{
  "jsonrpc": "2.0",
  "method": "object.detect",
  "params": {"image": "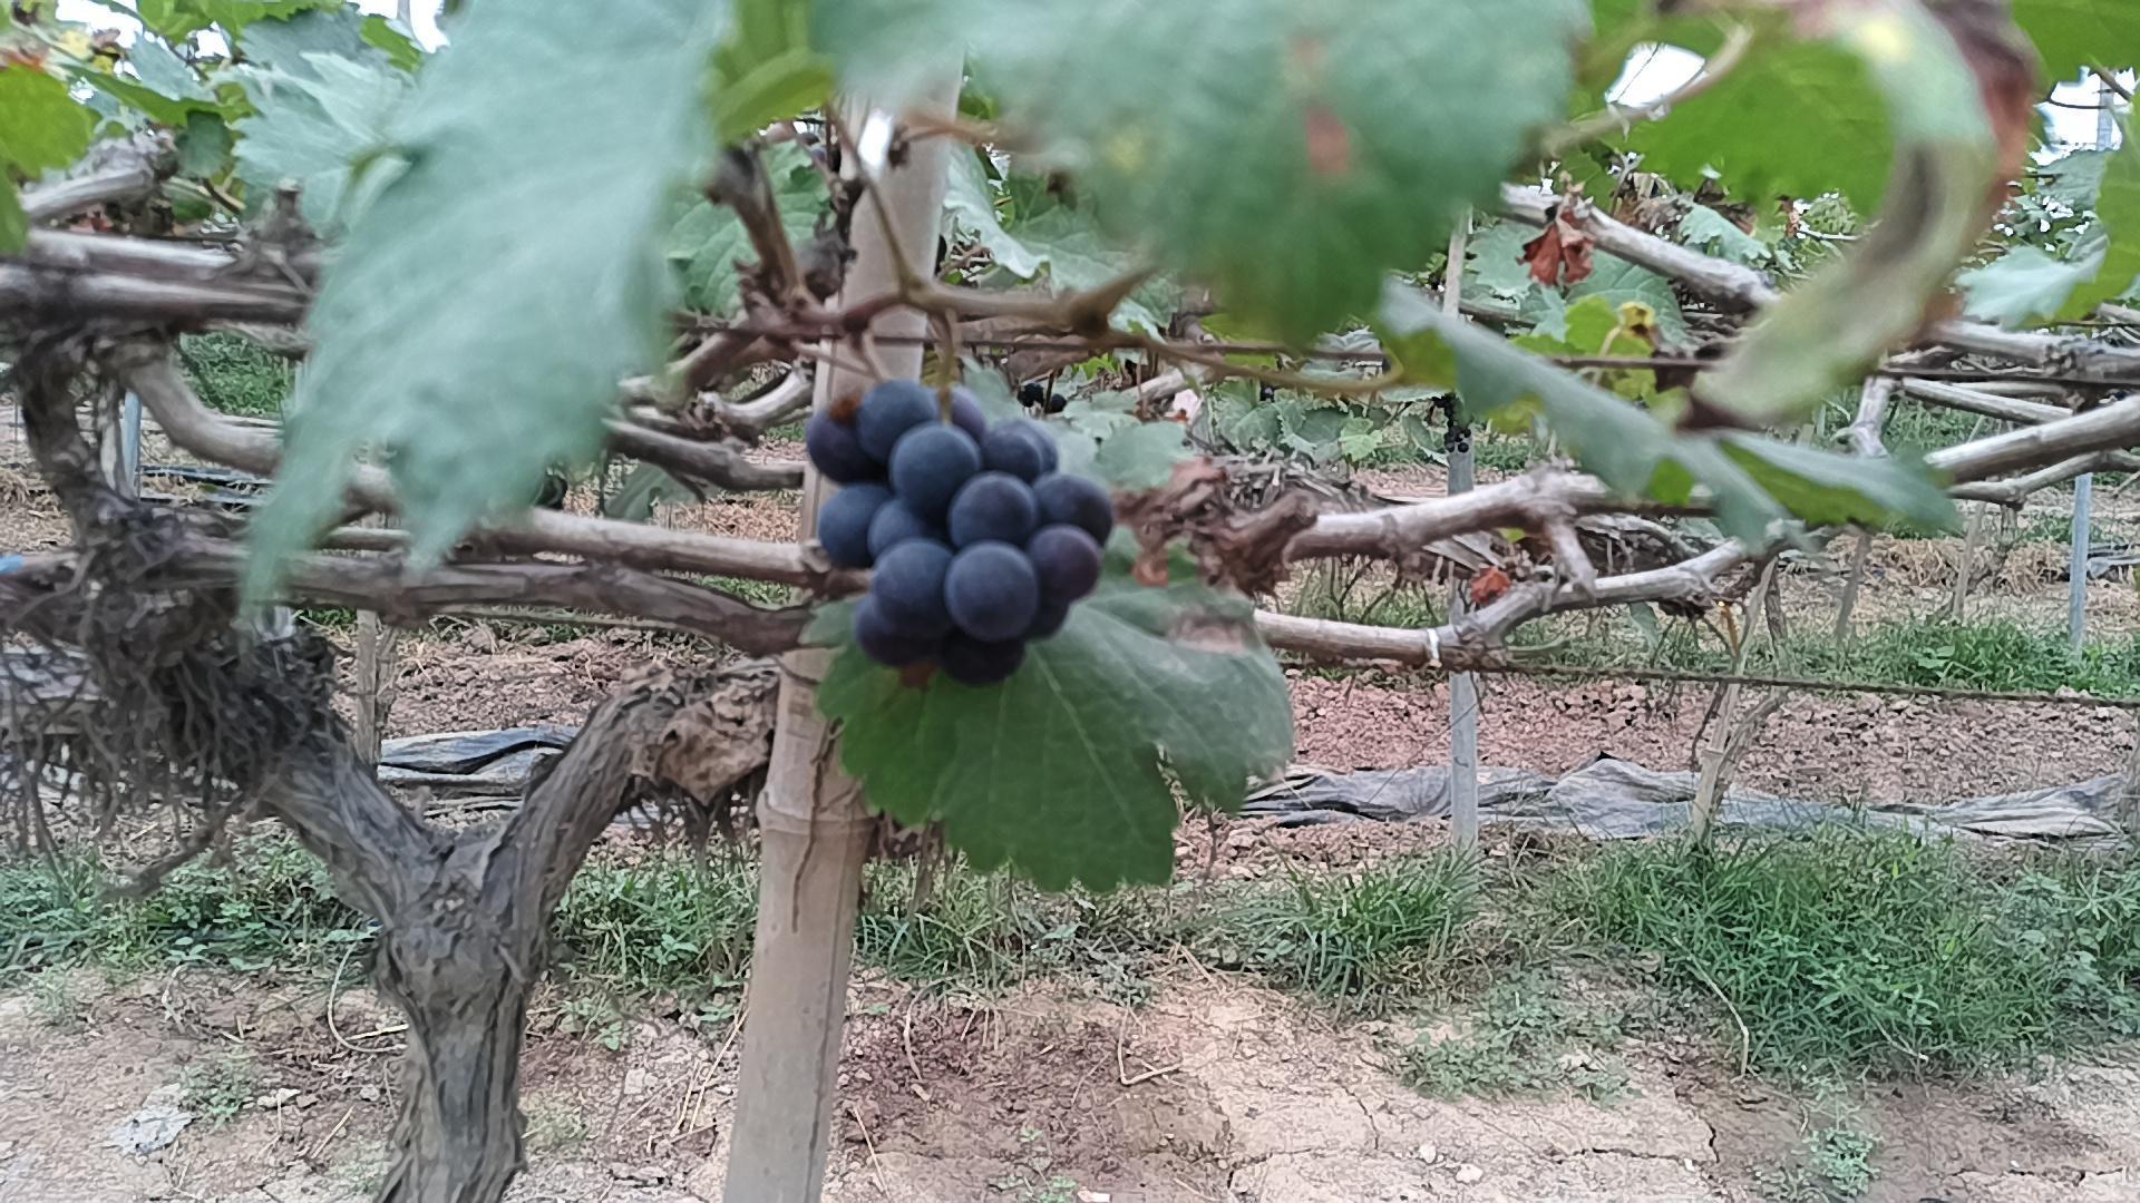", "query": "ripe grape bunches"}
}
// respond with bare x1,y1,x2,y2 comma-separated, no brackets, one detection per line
1014,378,1069,417
1429,393,1475,467
809,380,1115,684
